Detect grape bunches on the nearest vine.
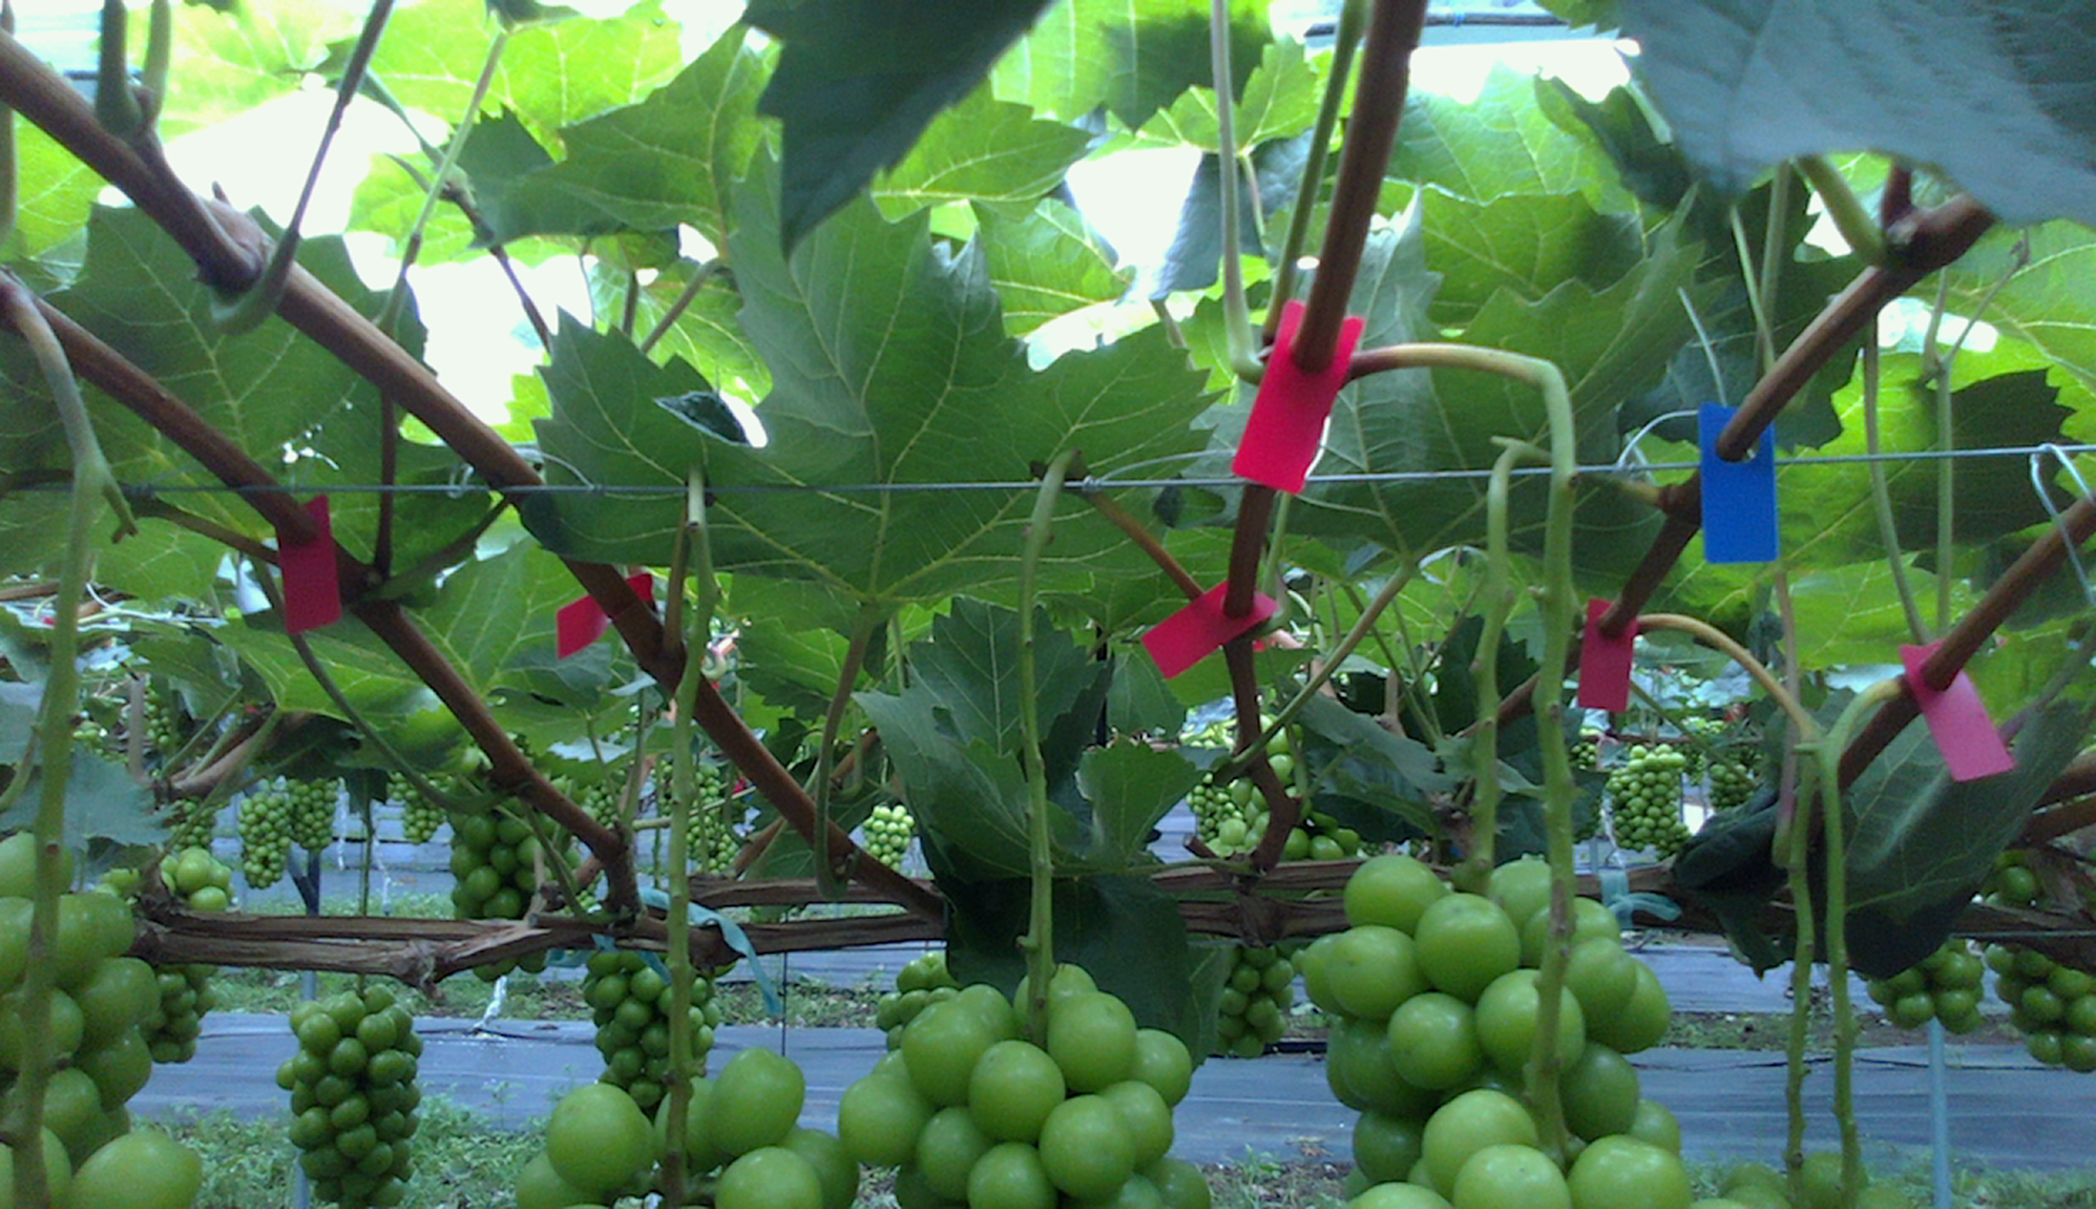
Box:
[838,966,1211,1207]
[1345,1086,1698,1207]
[1295,848,1676,1199]
[524,1048,857,1207]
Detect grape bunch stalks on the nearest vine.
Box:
[1465,442,1547,893]
[1795,678,1905,1206]
[1636,613,1819,1207]
[1357,344,1582,1162]
[1019,447,1087,1046]
[662,474,719,1199]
